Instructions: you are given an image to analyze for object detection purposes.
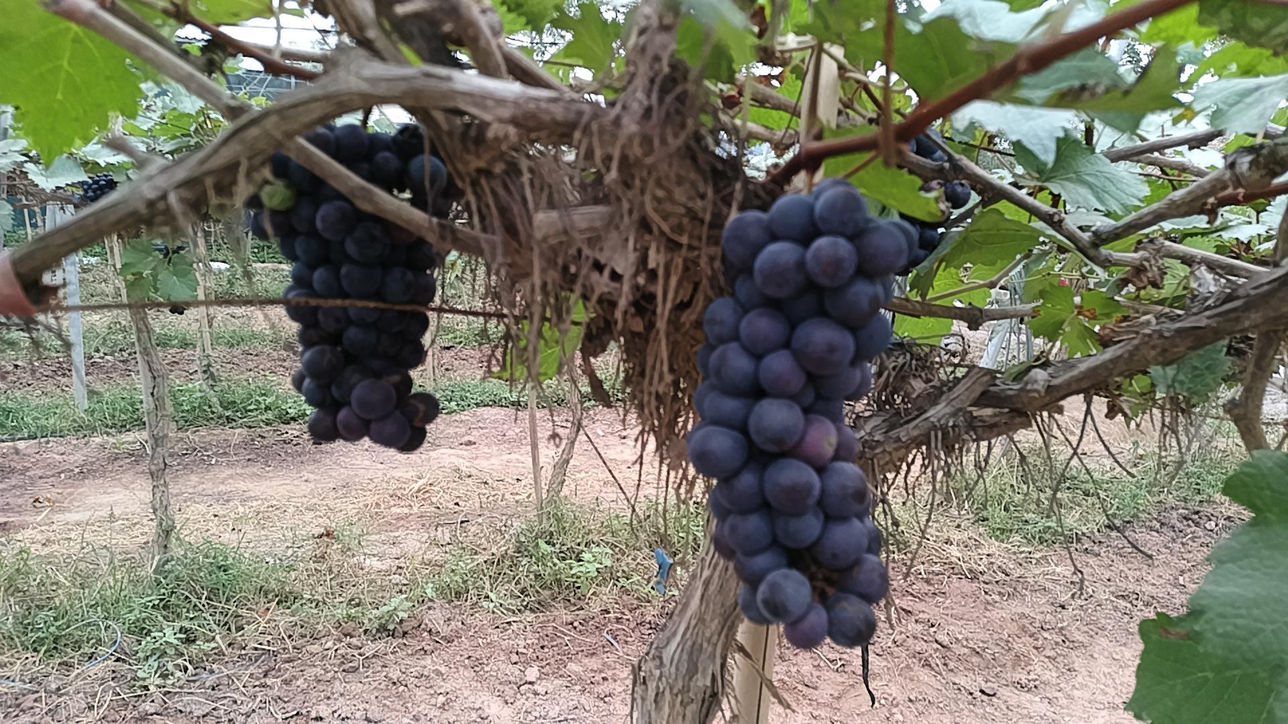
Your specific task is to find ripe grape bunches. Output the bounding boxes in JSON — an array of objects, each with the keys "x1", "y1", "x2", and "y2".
[
  {"x1": 242, "y1": 122, "x2": 458, "y2": 452},
  {"x1": 79, "y1": 172, "x2": 119, "y2": 204},
  {"x1": 900, "y1": 126, "x2": 971, "y2": 271},
  {"x1": 688, "y1": 179, "x2": 918, "y2": 648}
]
